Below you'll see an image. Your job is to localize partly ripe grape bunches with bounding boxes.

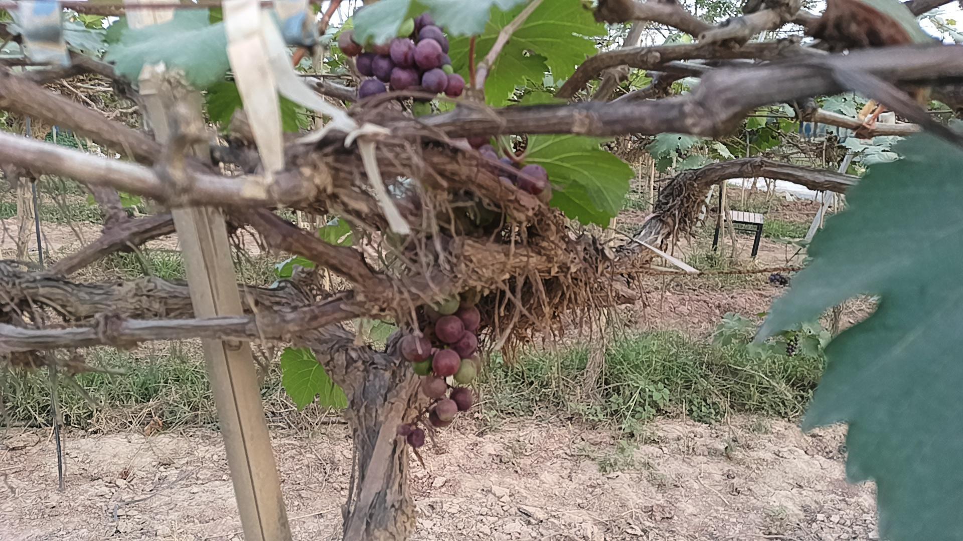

[398,289,481,448]
[340,13,467,115]
[453,136,548,193]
